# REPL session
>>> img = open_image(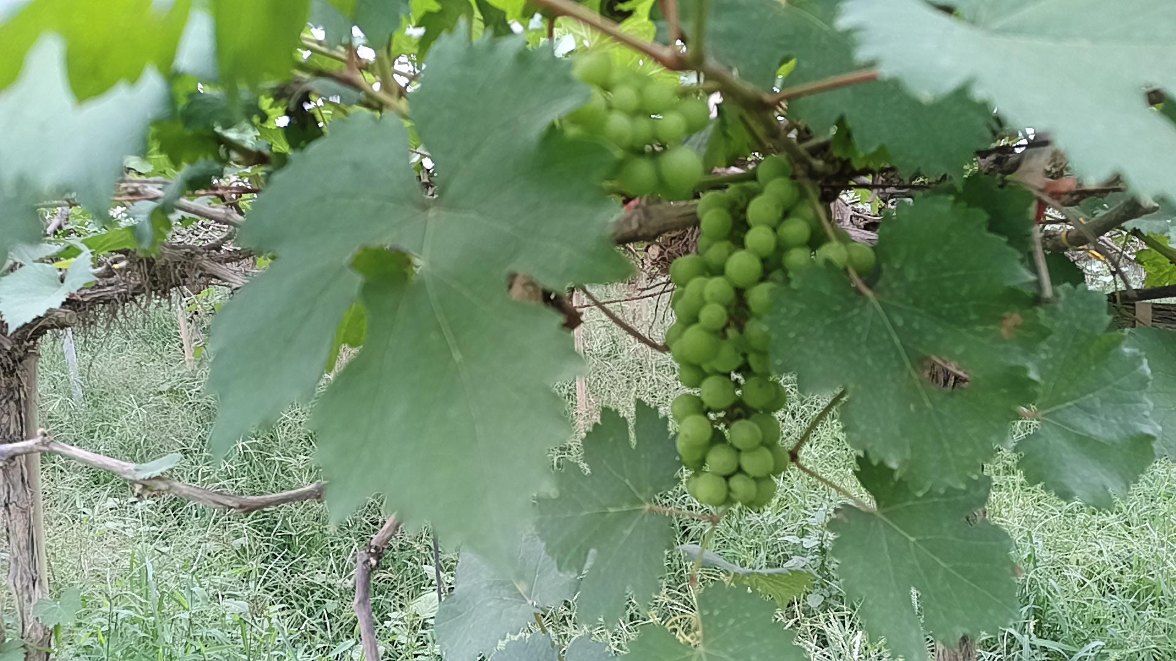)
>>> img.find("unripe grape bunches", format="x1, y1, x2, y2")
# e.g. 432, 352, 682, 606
561, 45, 707, 200
666, 157, 875, 507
